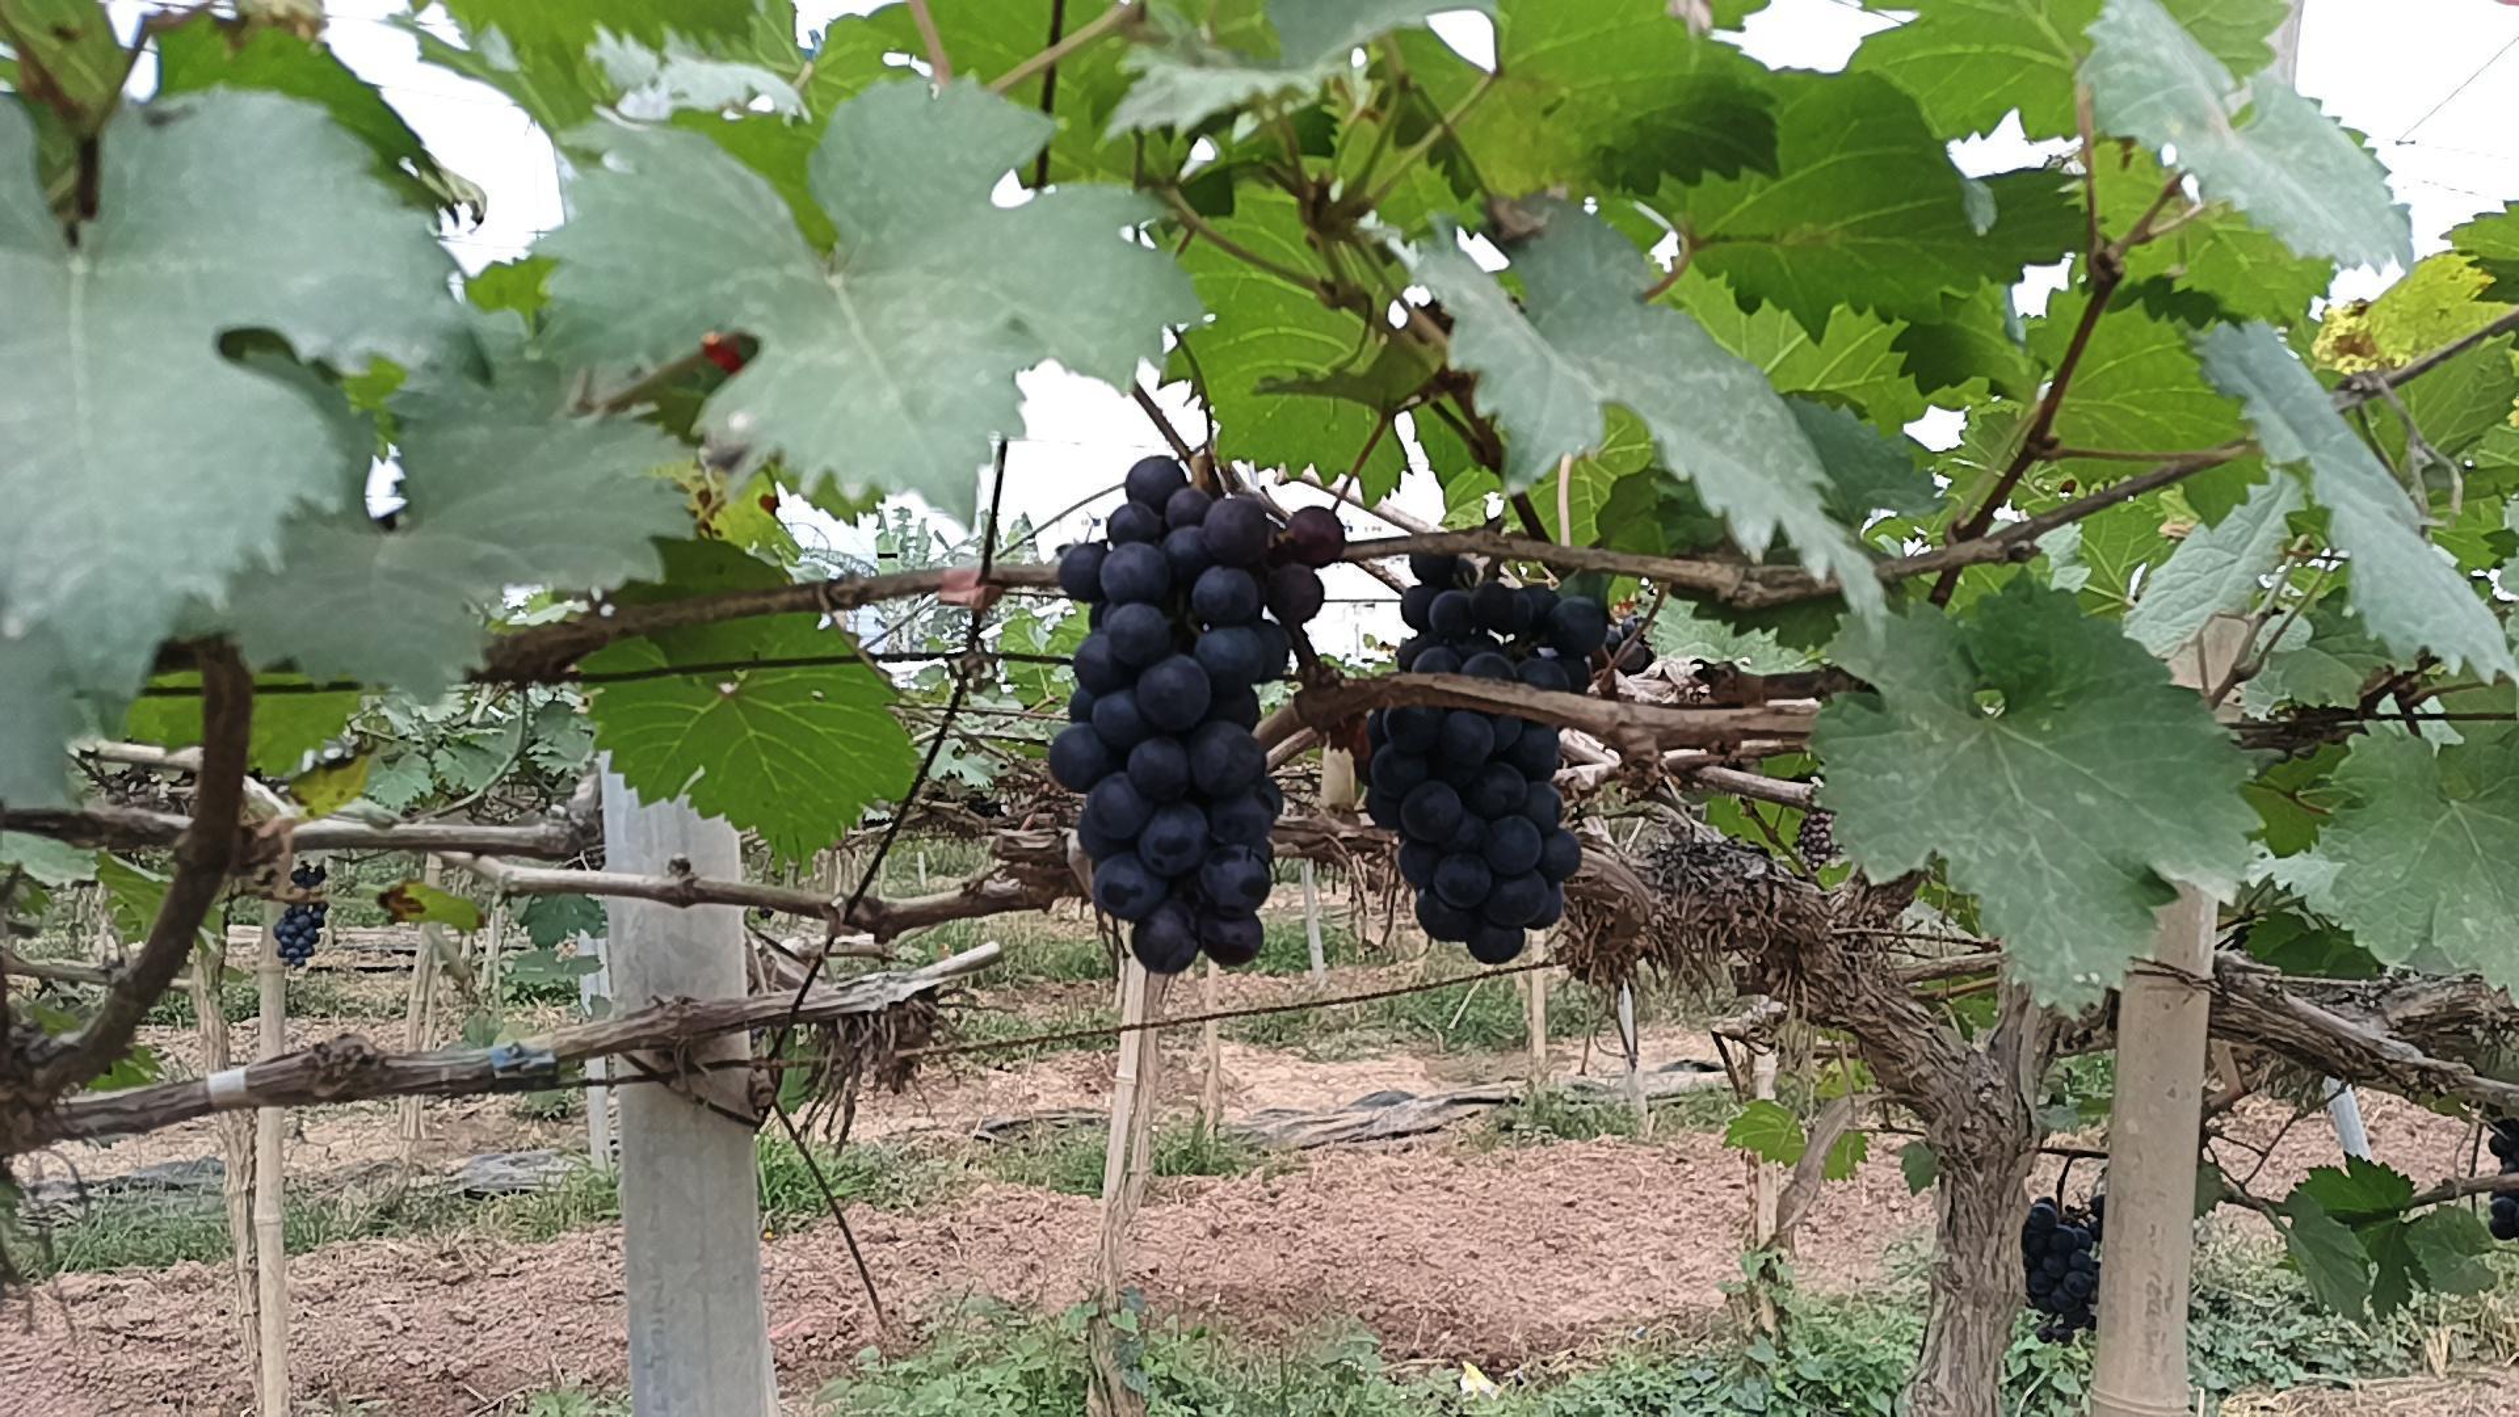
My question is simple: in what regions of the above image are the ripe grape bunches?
[273,861,328,967]
[1048,457,1343,972]
[2022,1197,2103,1341]
[1366,554,1652,963]
[1797,807,1839,871]
[2486,1117,2518,1239]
